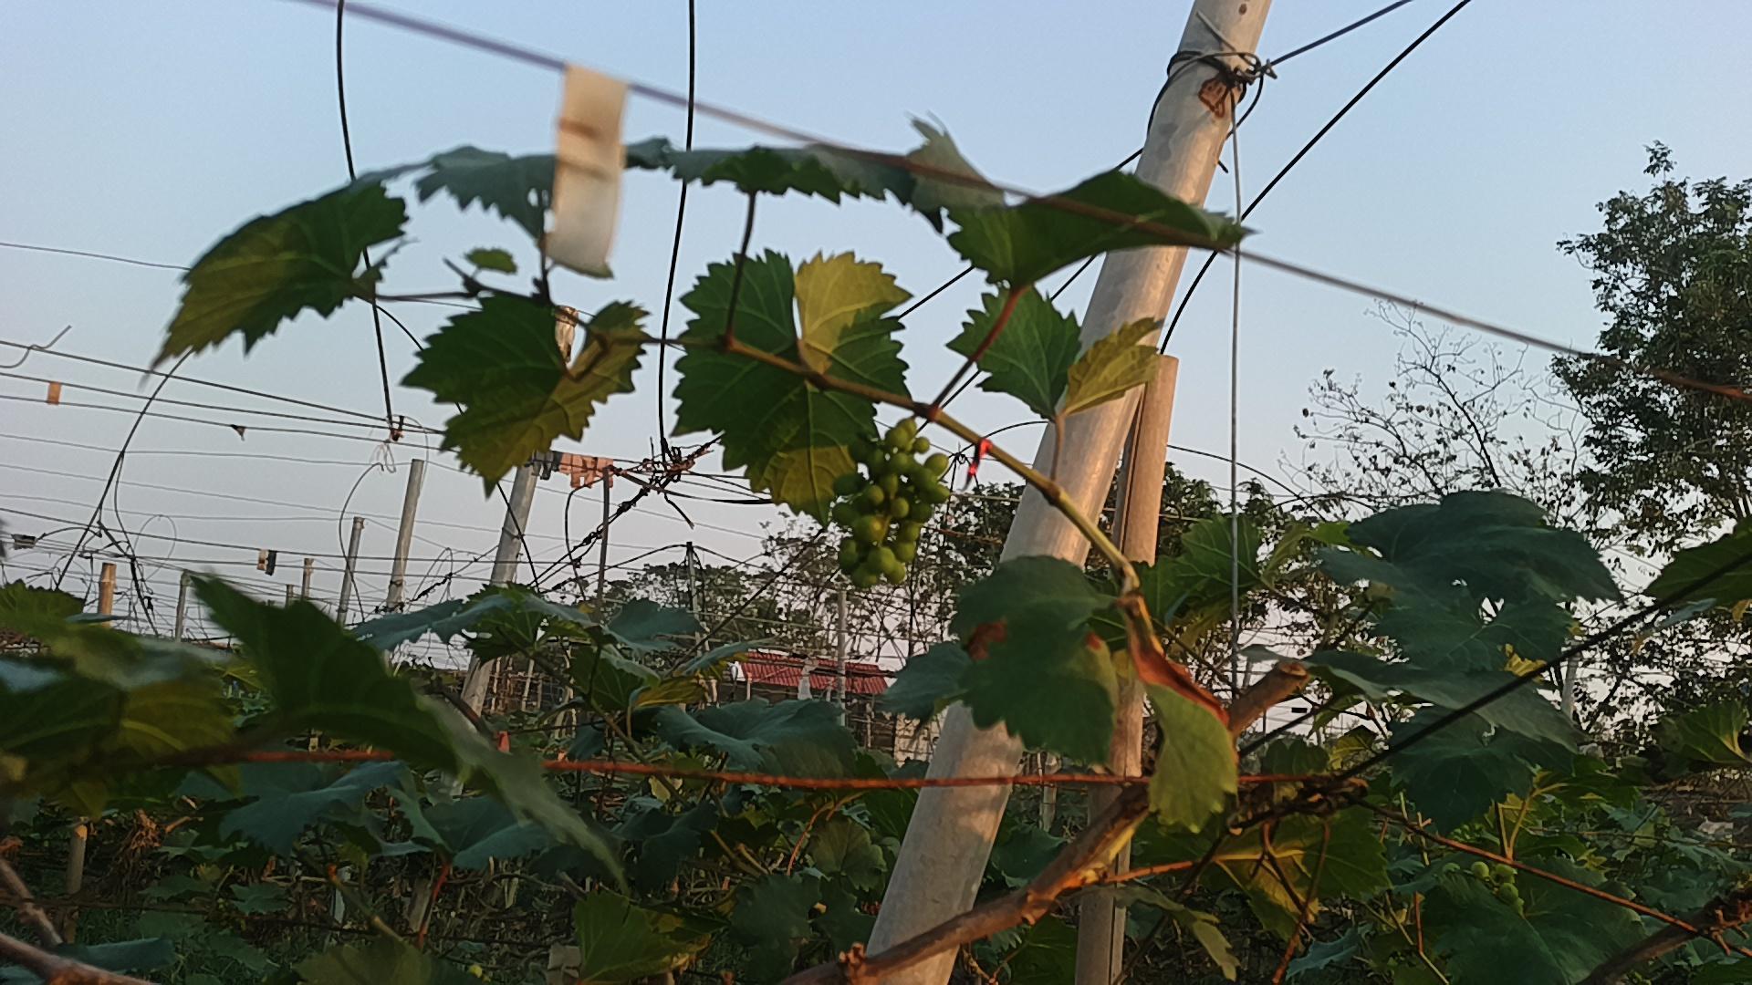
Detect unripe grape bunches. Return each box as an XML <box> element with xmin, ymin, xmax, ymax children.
<box><xmin>830</xmin><ymin>419</ymin><xmax>951</xmax><ymax>588</ymax></box>
<box><xmin>1441</xmin><ymin>861</ymin><xmax>1526</xmax><ymax>918</ymax></box>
